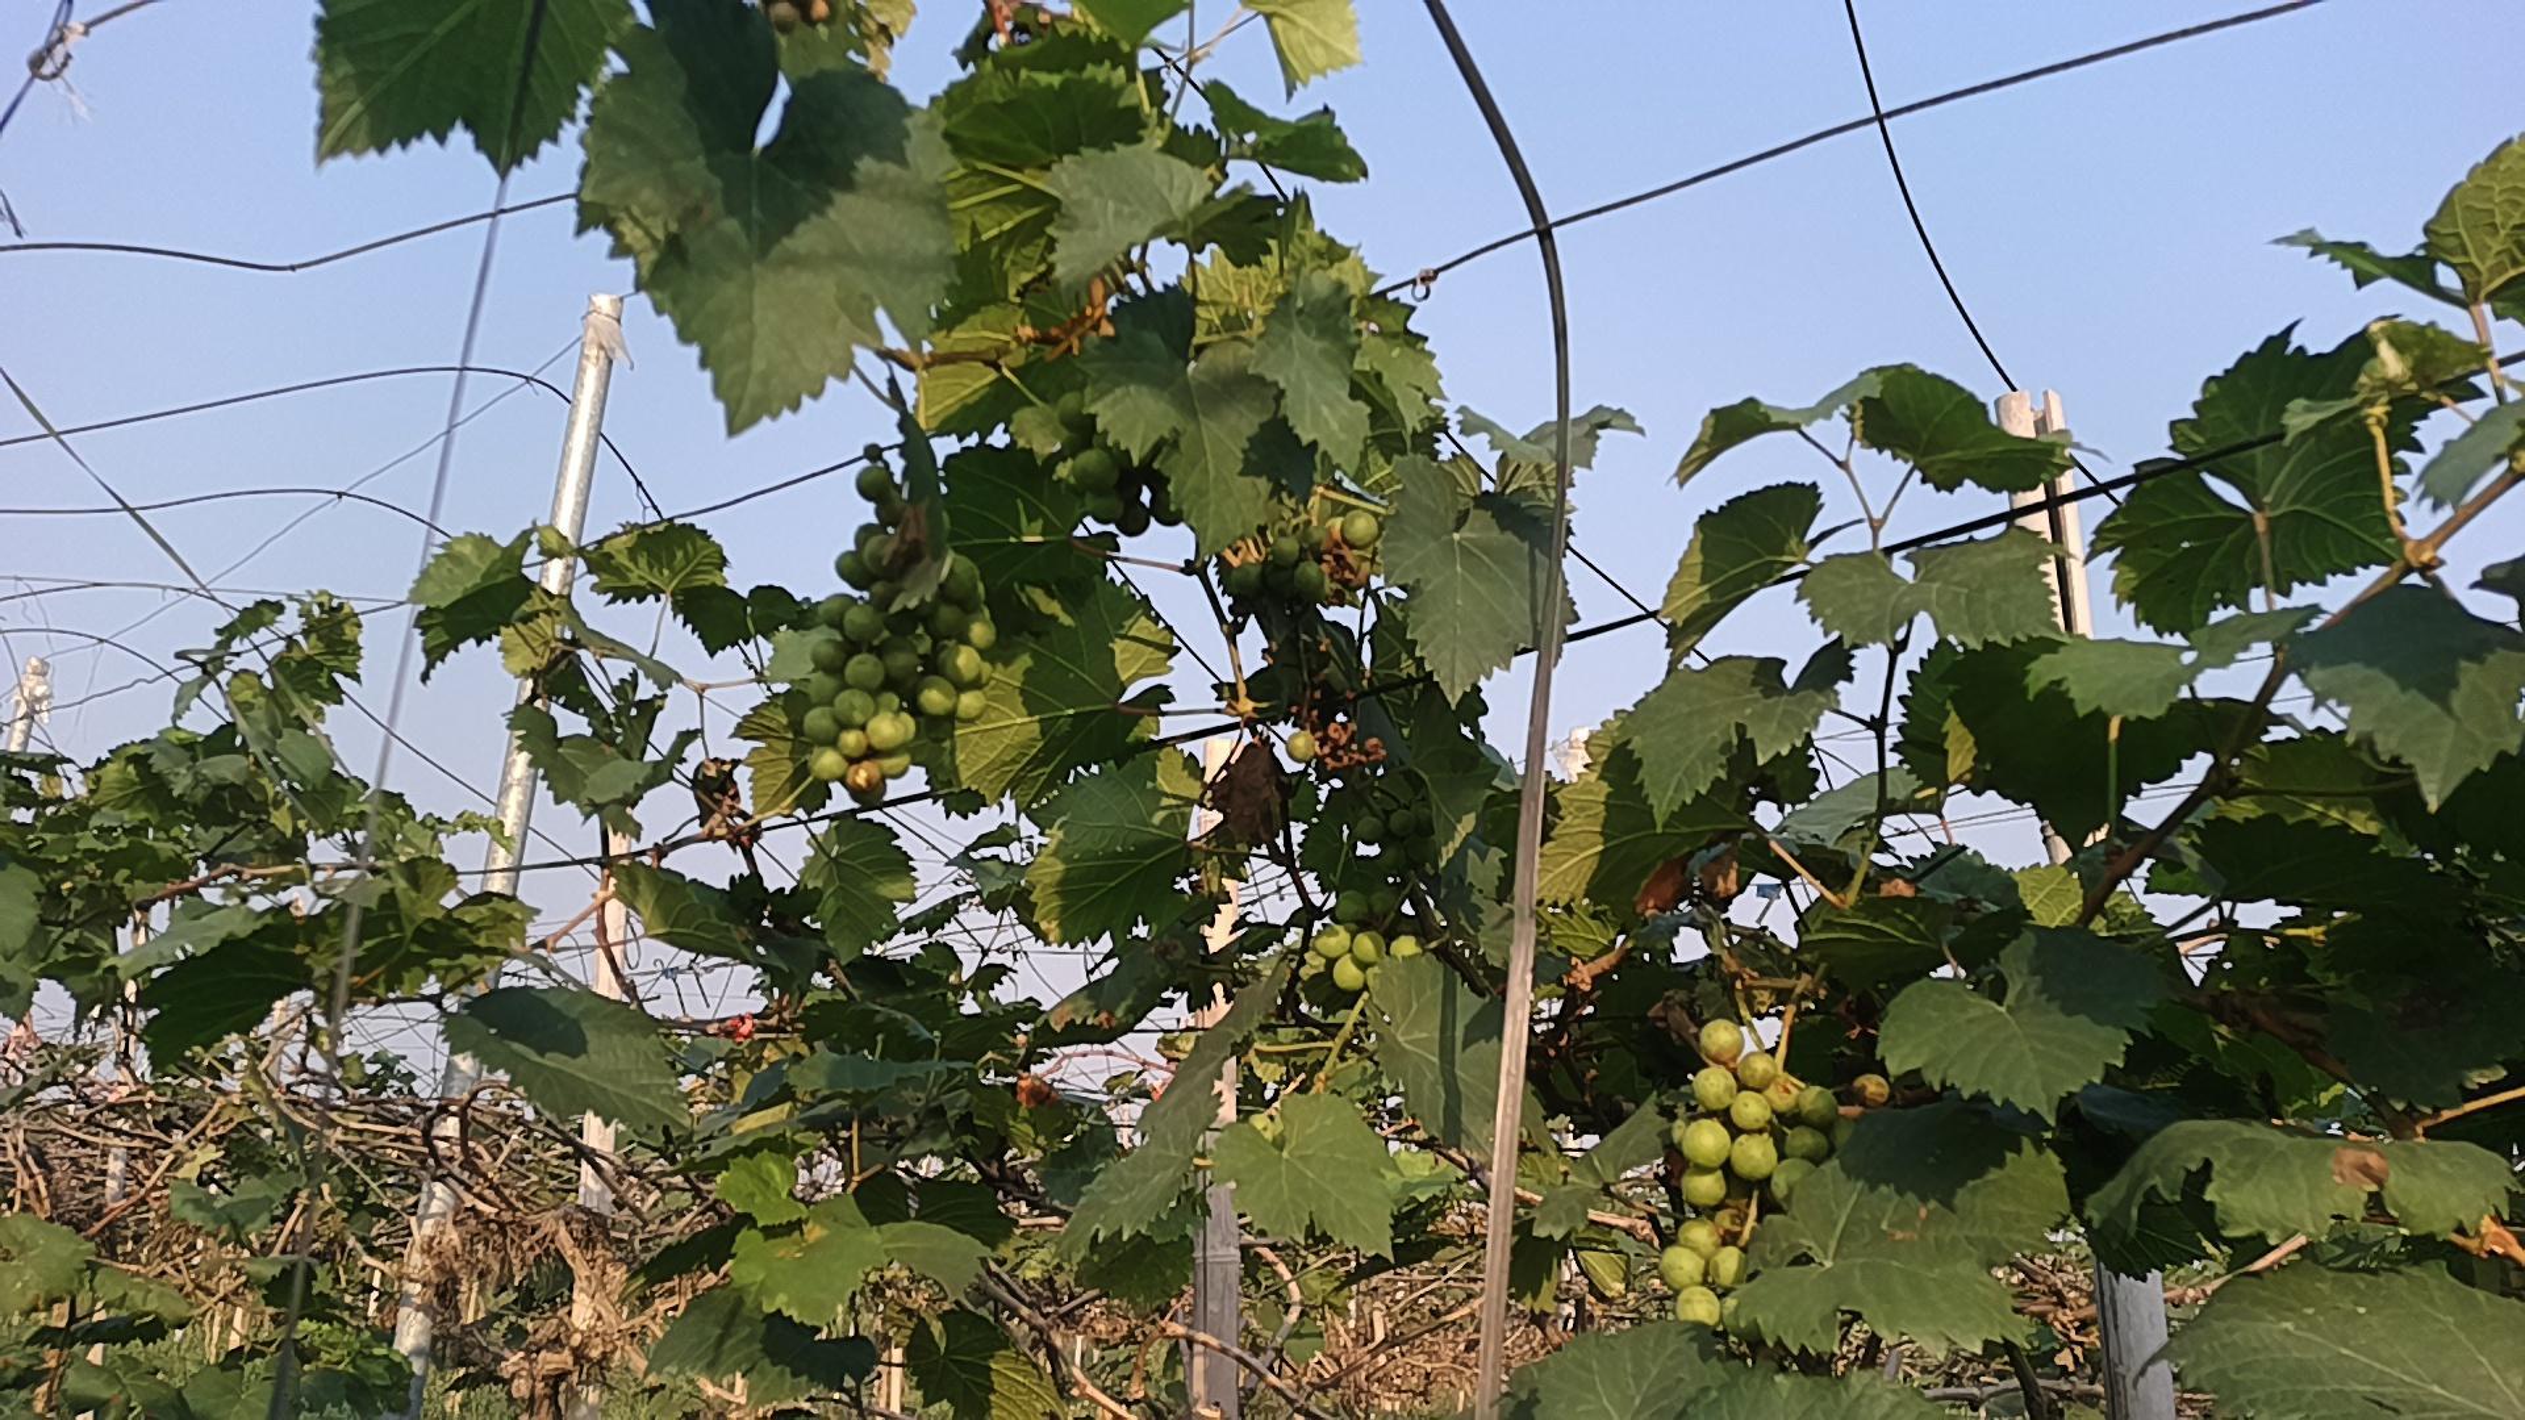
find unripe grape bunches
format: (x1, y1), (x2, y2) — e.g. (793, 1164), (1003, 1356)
(796, 440), (997, 795)
(1660, 1020), (1890, 1325)
(1224, 509), (1378, 605)
(1056, 335), (1180, 535)
(1285, 728), (1436, 1010)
